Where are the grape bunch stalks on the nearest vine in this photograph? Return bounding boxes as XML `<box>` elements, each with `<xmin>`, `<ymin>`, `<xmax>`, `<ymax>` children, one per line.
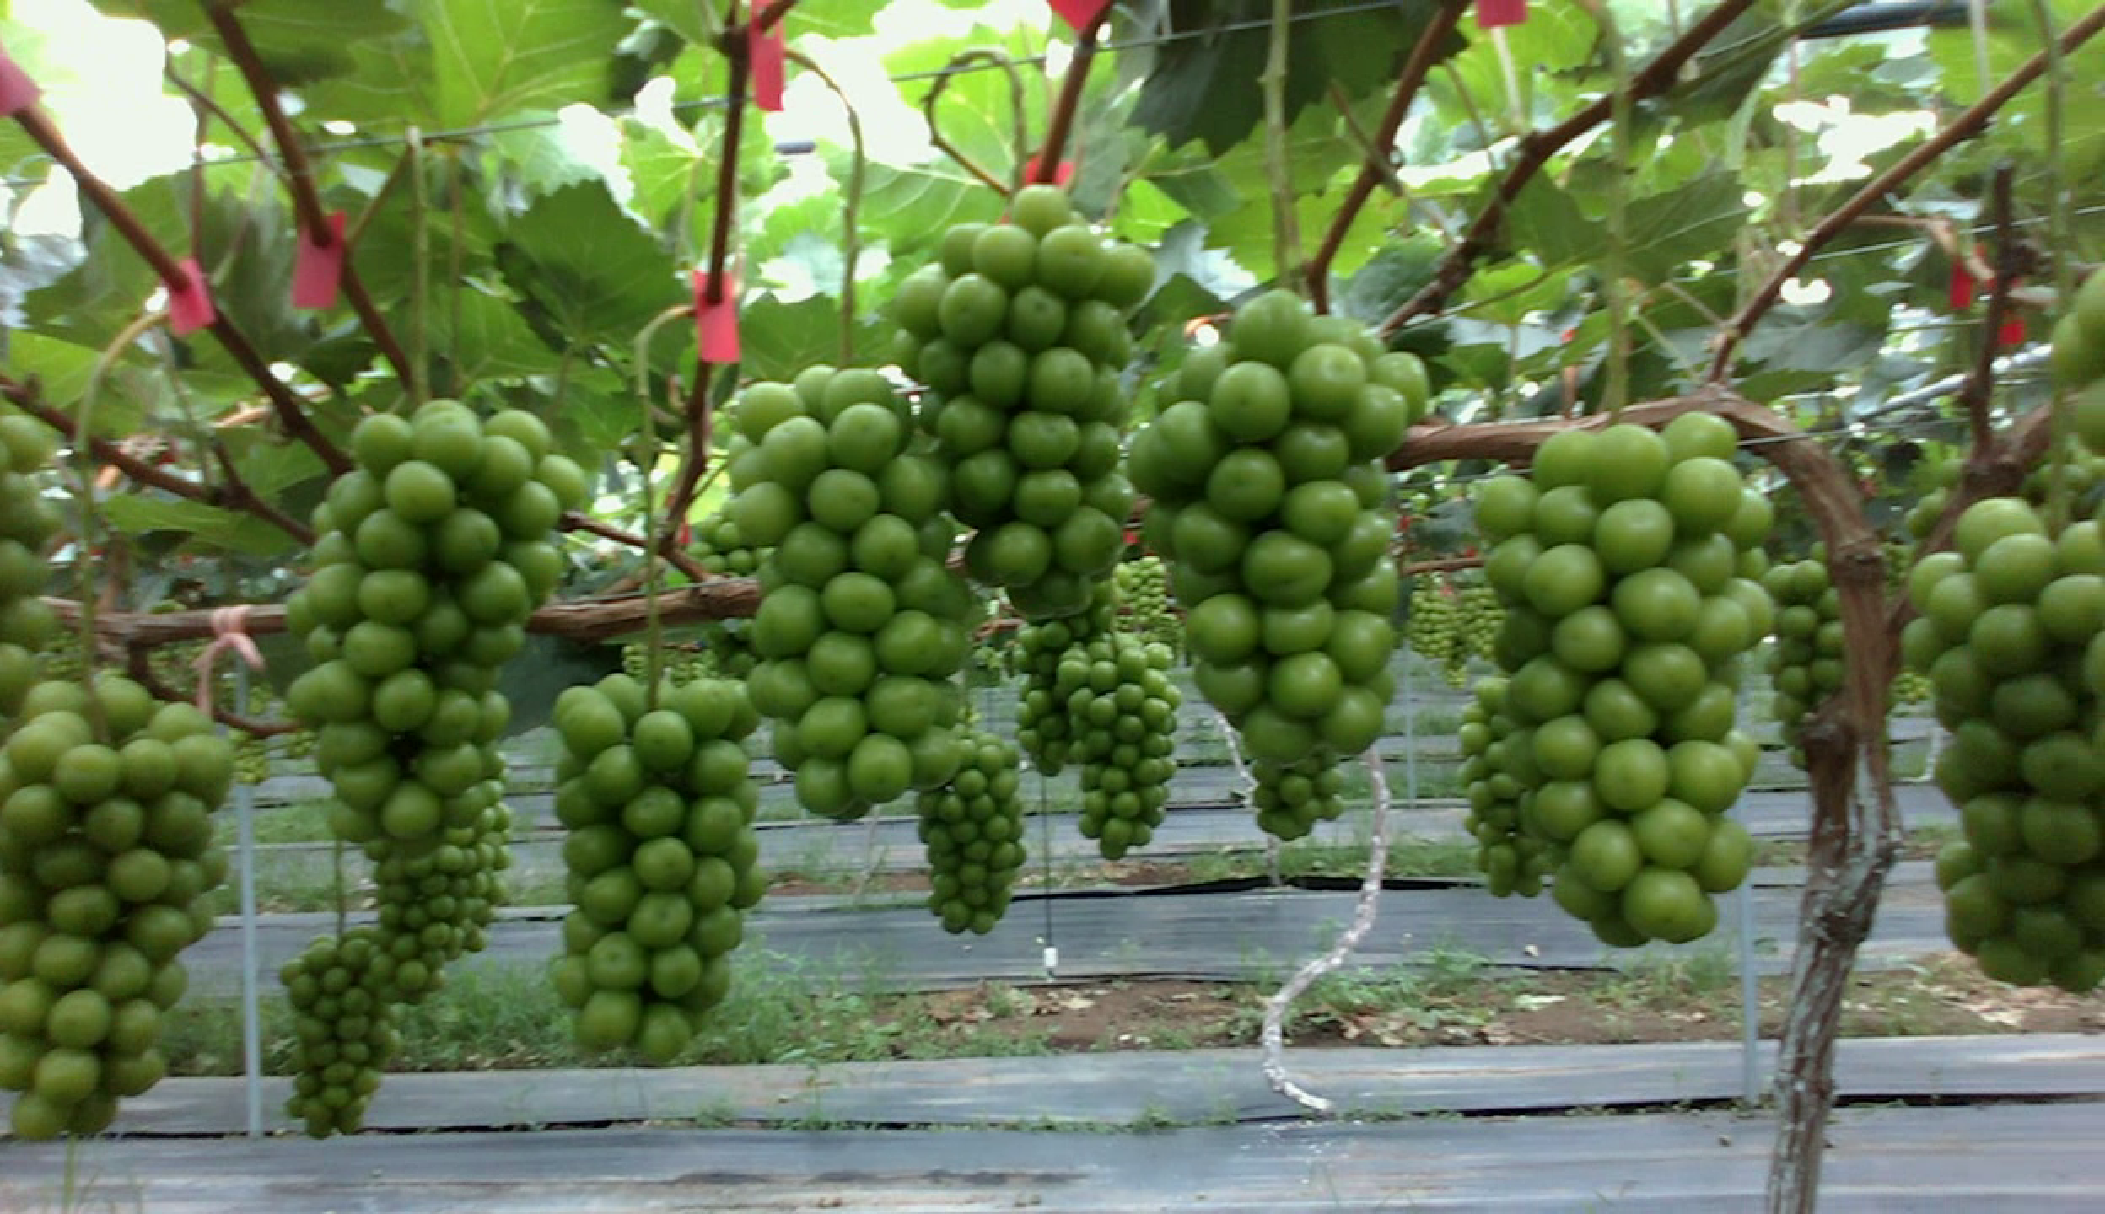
<box><xmin>1580</xmin><ymin>0</ymin><xmax>1629</xmax><ymax>427</ymax></box>
<box><xmin>786</xmin><ymin>46</ymin><xmax>864</xmax><ymax>369</ymax></box>
<box><xmin>633</xmin><ymin>305</ymin><xmax>695</xmax><ymax>710</ymax></box>
<box><xmin>1258</xmin><ymin>2</ymin><xmax>1306</xmax><ymax>297</ymax></box>
<box><xmin>76</xmin><ymin>307</ymin><xmax>169</xmax><ymax>745</ymax></box>
<box><xmin>401</xmin><ymin>125</ymin><xmax>430</xmax><ymax>406</ymax></box>
<box><xmin>921</xmin><ymin>46</ymin><xmax>1026</xmax><ymax>199</ymax></box>
<box><xmin>2024</xmin><ymin>0</ymin><xmax>2076</xmax><ymax>540</ymax></box>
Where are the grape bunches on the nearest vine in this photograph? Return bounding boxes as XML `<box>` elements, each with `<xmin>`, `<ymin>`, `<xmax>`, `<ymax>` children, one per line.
<box><xmin>552</xmin><ymin>673</ymin><xmax>767</xmax><ymax>1062</ymax></box>
<box><xmin>1472</xmin><ymin>411</ymin><xmax>1774</xmax><ymax>948</ymax></box>
<box><xmin>1899</xmin><ymin>499</ymin><xmax>2103</xmax><ymax>993</ymax></box>
<box><xmin>729</xmin><ymin>364</ymin><xmax>972</xmax><ymax>821</ymax></box>
<box><xmin>891</xmin><ymin>182</ymin><xmax>1157</xmax><ymax>622</ymax></box>
<box><xmin>2</xmin><ymin>674</ymin><xmax>238</xmax><ymax>1141</ymax></box>
<box><xmin>1128</xmin><ymin>288</ymin><xmax>1429</xmax><ymax>767</ymax></box>
<box><xmin>280</xmin><ymin>398</ymin><xmax>587</xmax><ymax>843</ymax></box>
